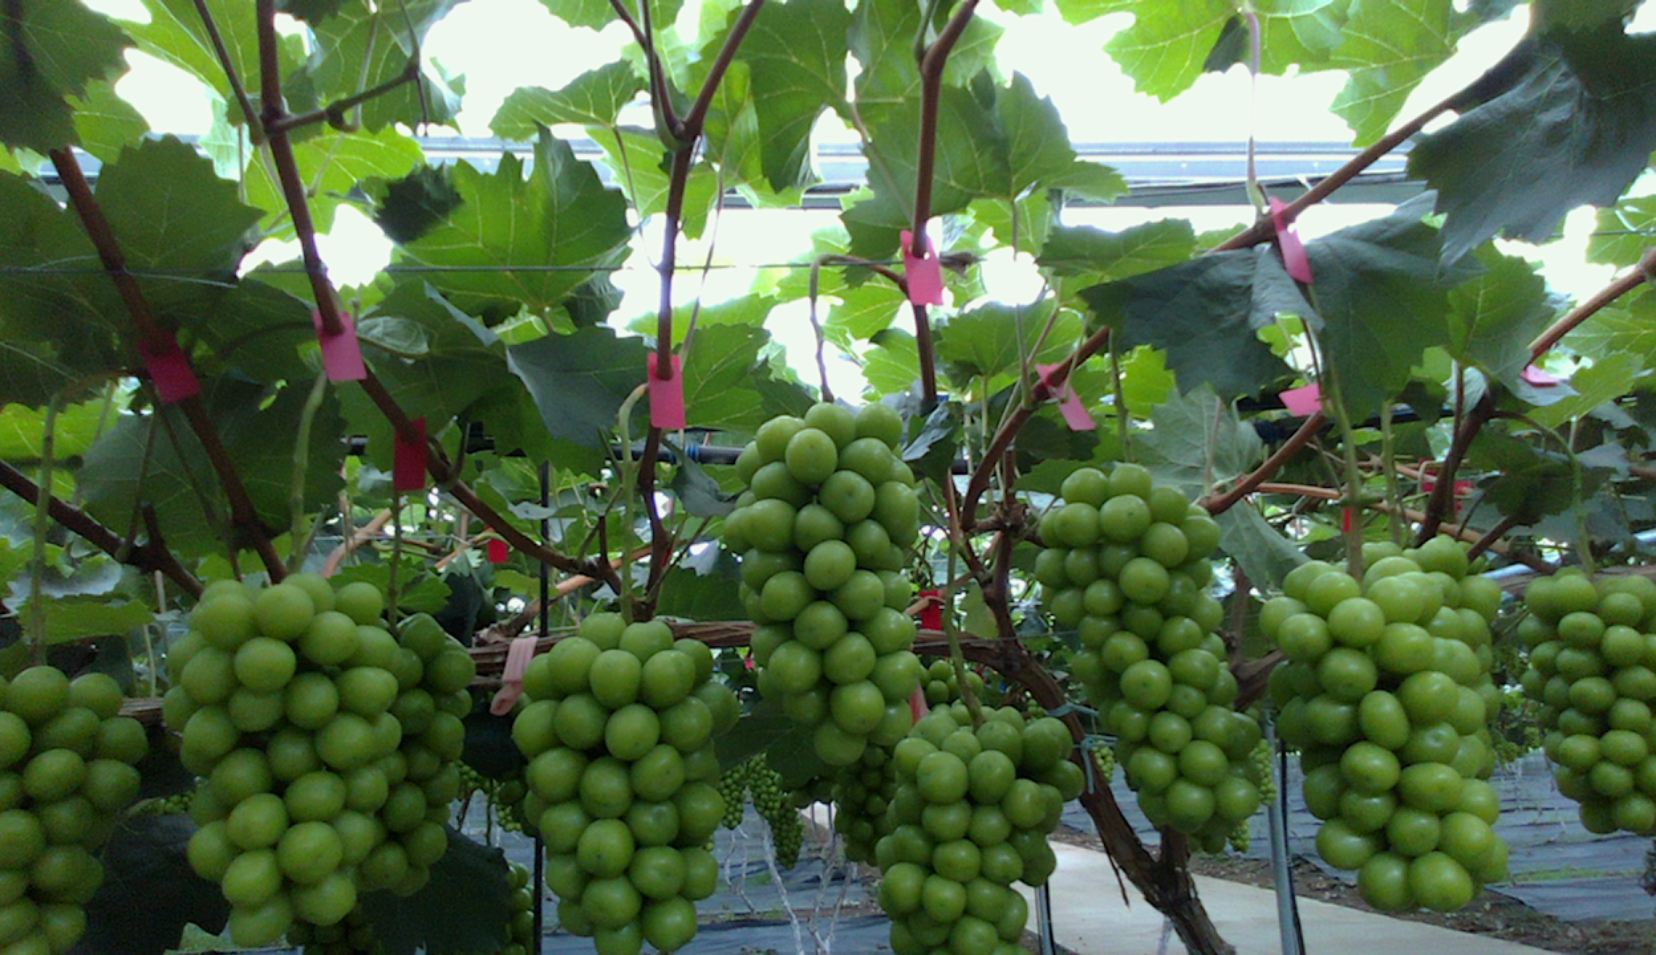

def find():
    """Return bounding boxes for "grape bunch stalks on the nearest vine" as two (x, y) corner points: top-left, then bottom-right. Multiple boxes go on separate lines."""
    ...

(1308, 288), (1381, 584)
(289, 369), (326, 570)
(618, 385), (644, 625)
(387, 493), (401, 637)
(1108, 334), (1135, 462)
(943, 467), (986, 731)
(29, 369), (127, 666)
(808, 251), (859, 402)
(1501, 413), (1596, 578)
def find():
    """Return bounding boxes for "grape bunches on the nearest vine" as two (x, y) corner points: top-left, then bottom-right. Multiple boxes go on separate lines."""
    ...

(721, 401), (921, 768)
(1032, 464), (1263, 838)
(1518, 562), (1655, 833)
(514, 613), (738, 954)
(360, 611), (478, 894)
(0, 667), (149, 954)
(876, 706), (1084, 954)
(1257, 533), (1507, 914)
(165, 572), (402, 947)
